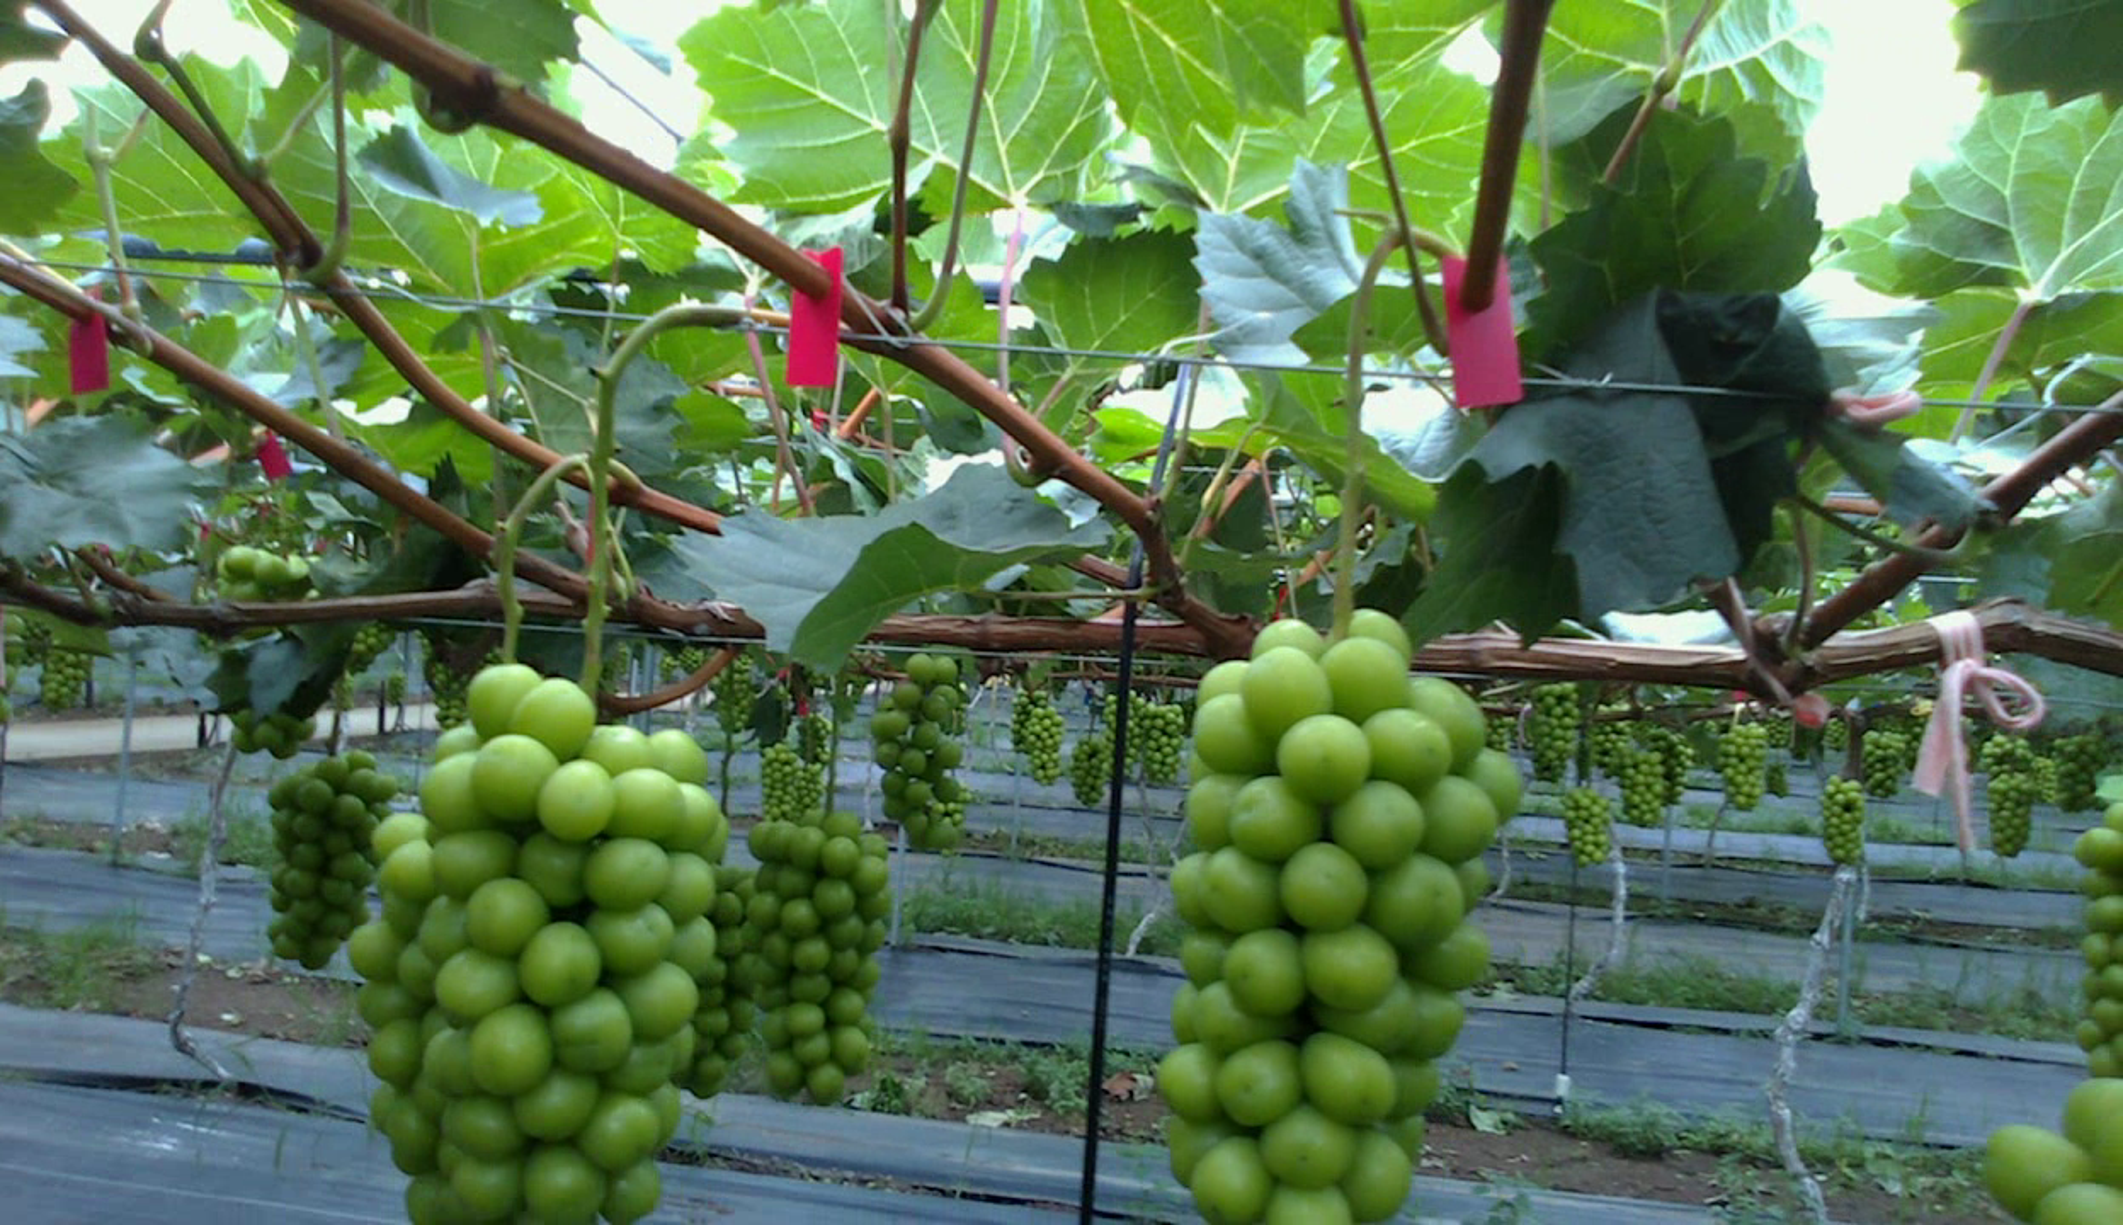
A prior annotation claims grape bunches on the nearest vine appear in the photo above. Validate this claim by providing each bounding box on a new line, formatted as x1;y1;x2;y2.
1157;609;1526;1223
417;664;730;1223
347;812;471;1223
1985;1075;2120;1223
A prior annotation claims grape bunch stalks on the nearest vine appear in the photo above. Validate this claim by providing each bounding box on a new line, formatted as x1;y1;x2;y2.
1327;225;1461;643
577;301;789;708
